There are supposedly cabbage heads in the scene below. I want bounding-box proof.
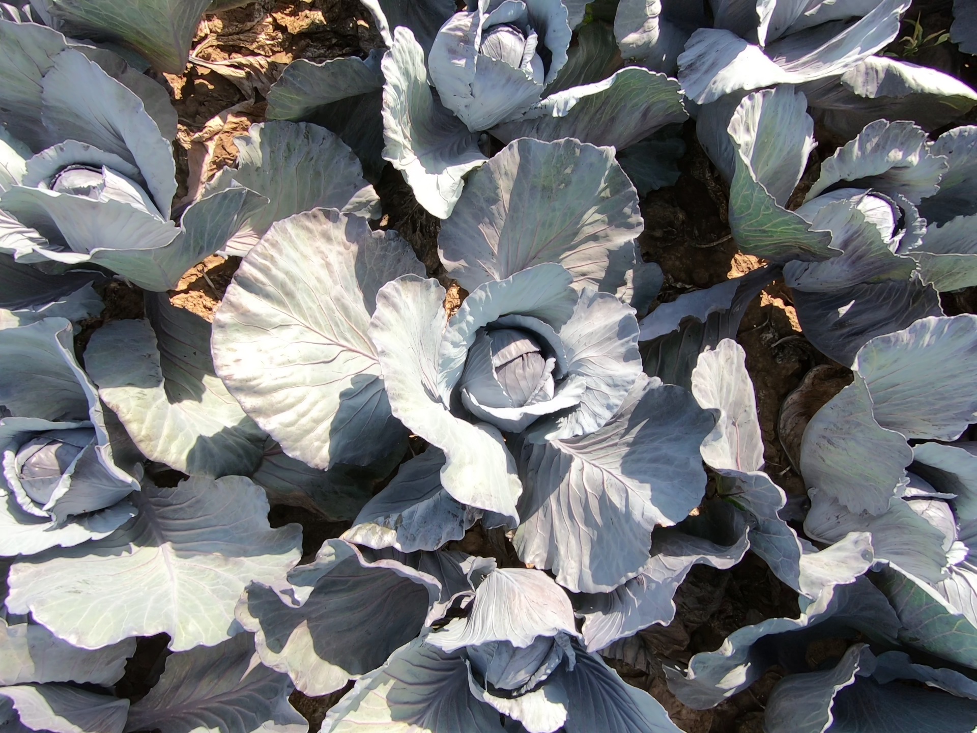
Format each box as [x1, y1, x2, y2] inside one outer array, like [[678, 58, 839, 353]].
[[13, 429, 126, 502], [482, 594, 557, 690], [813, 192, 894, 276], [54, 166, 148, 246], [471, 334, 552, 421], [863, 484, 954, 567], [456, 22, 536, 114]]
